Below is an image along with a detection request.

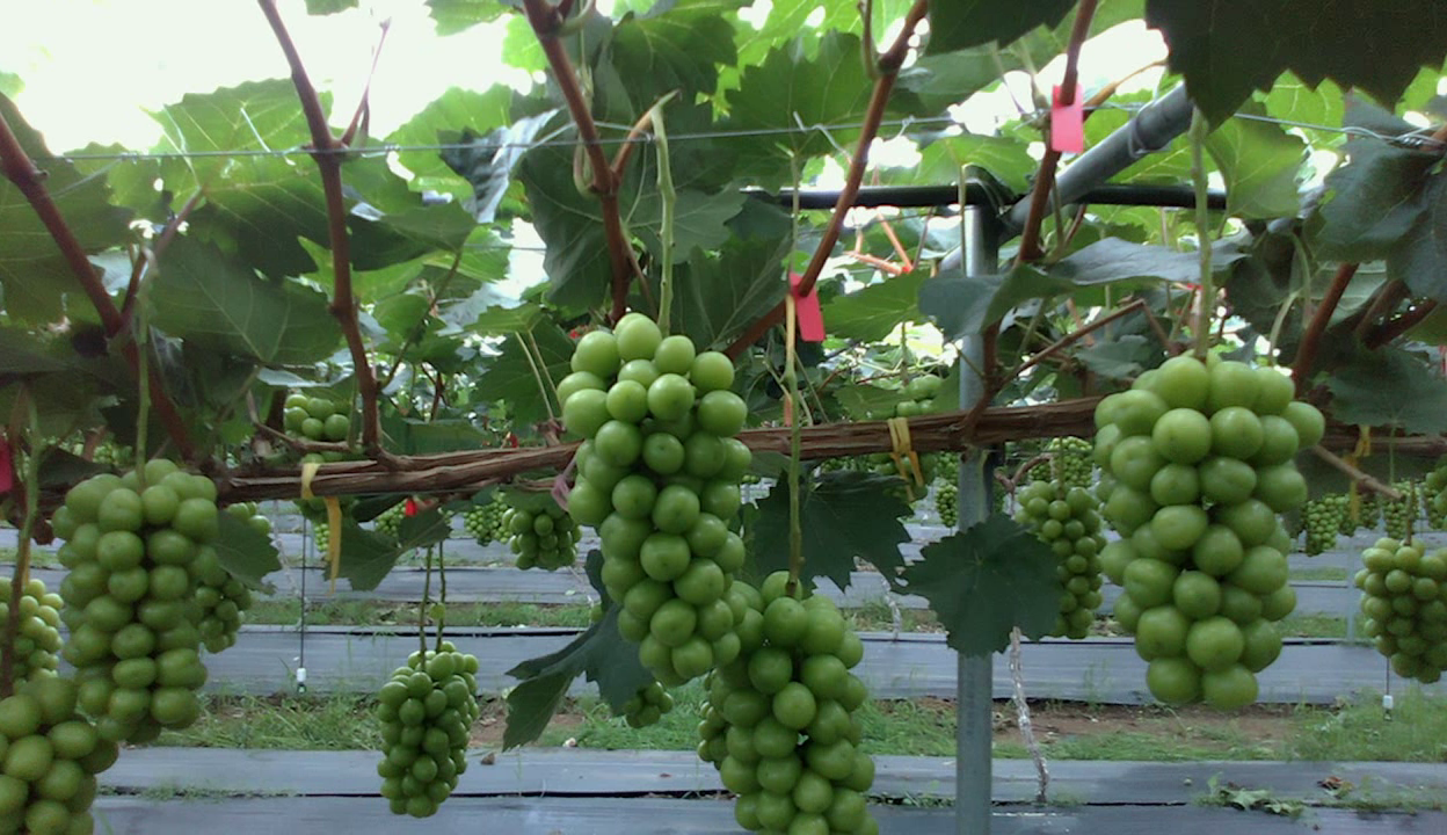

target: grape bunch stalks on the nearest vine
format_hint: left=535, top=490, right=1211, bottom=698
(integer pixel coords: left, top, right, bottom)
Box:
left=2, top=380, right=39, bottom=697
left=117, top=246, right=158, bottom=495
left=632, top=88, right=683, bottom=337
left=785, top=295, right=800, bottom=596
left=1191, top=102, right=1213, bottom=361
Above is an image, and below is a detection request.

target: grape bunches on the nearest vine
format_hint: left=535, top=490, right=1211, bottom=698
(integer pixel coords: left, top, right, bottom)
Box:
left=52, top=458, right=218, bottom=745
left=558, top=312, right=751, bottom=684
left=1096, top=349, right=1324, bottom=705
left=714, top=569, right=878, bottom=834
left=0, top=676, right=118, bottom=834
